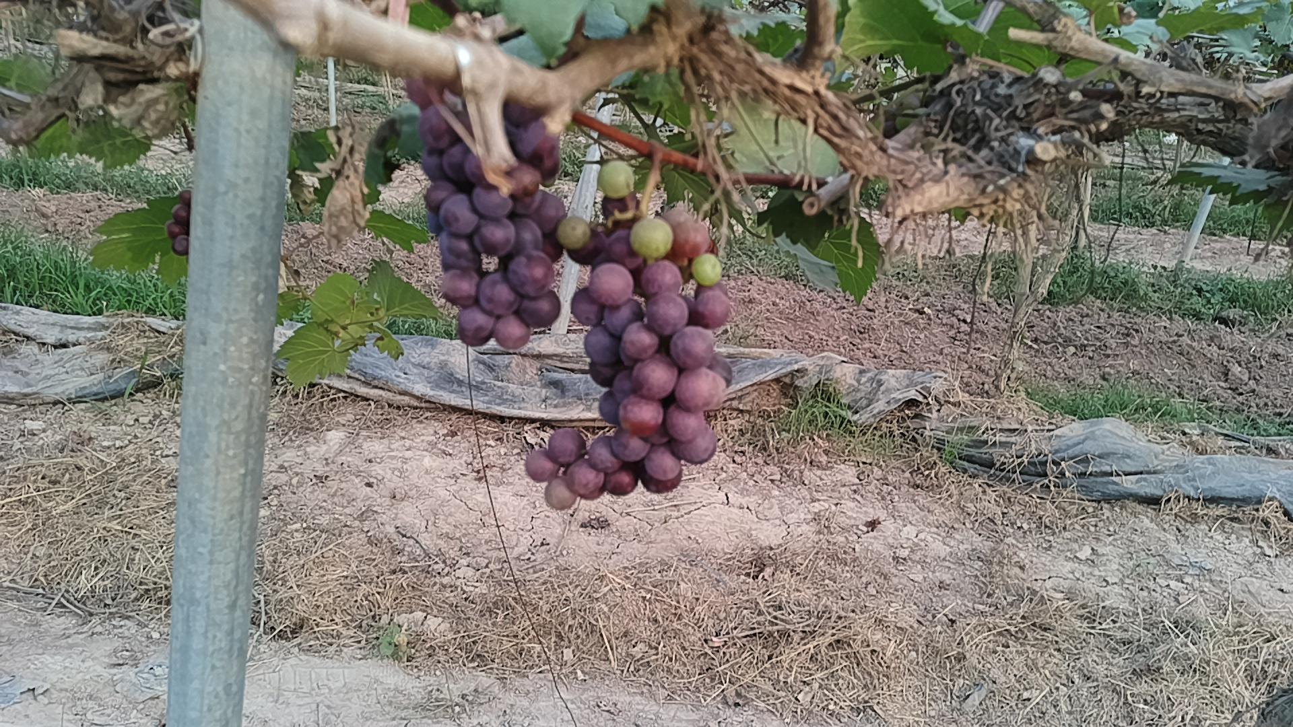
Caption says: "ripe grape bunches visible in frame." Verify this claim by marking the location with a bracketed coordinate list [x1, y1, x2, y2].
[165, 191, 191, 256]
[406, 80, 566, 349]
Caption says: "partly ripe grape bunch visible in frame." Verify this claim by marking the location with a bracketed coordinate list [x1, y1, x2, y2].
[527, 158, 731, 510]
